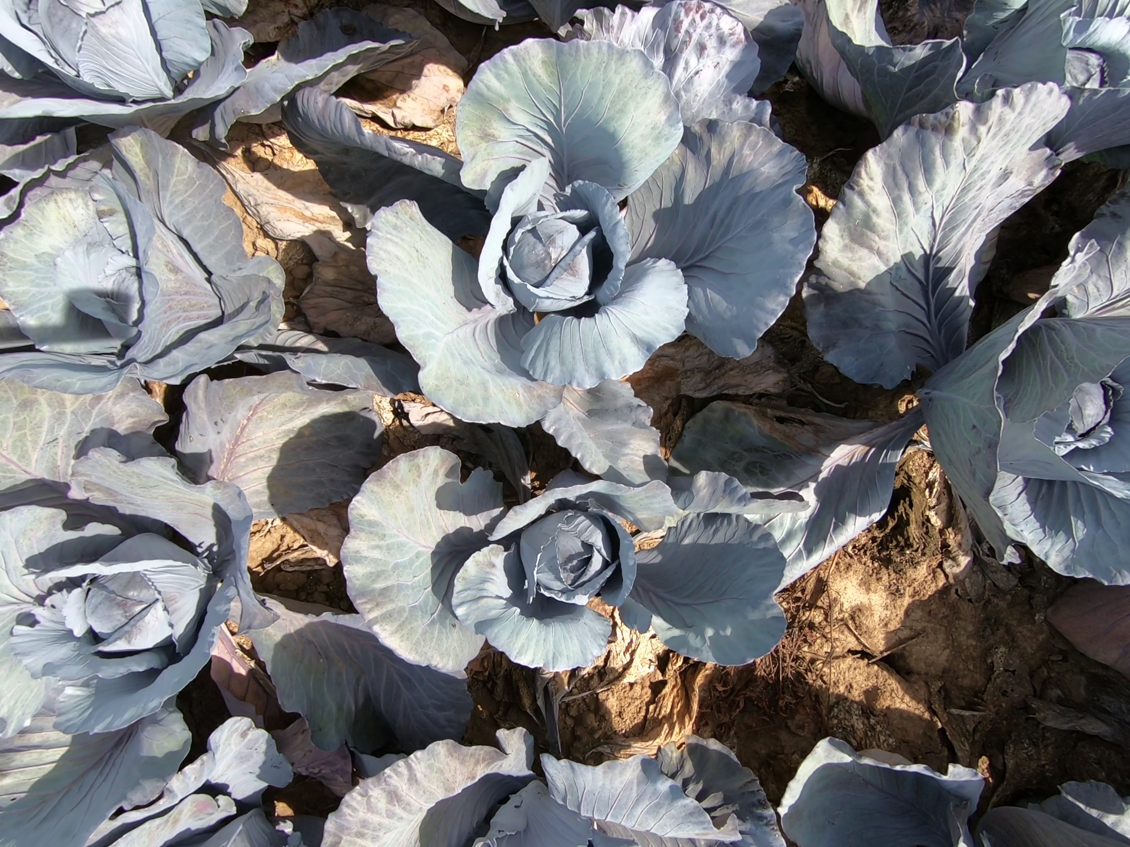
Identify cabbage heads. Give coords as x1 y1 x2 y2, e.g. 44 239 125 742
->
38 0 178 93
112 258 194 329
82 543 206 655
1019 39 1108 119
509 214 594 313
1023 358 1114 447
521 511 613 599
